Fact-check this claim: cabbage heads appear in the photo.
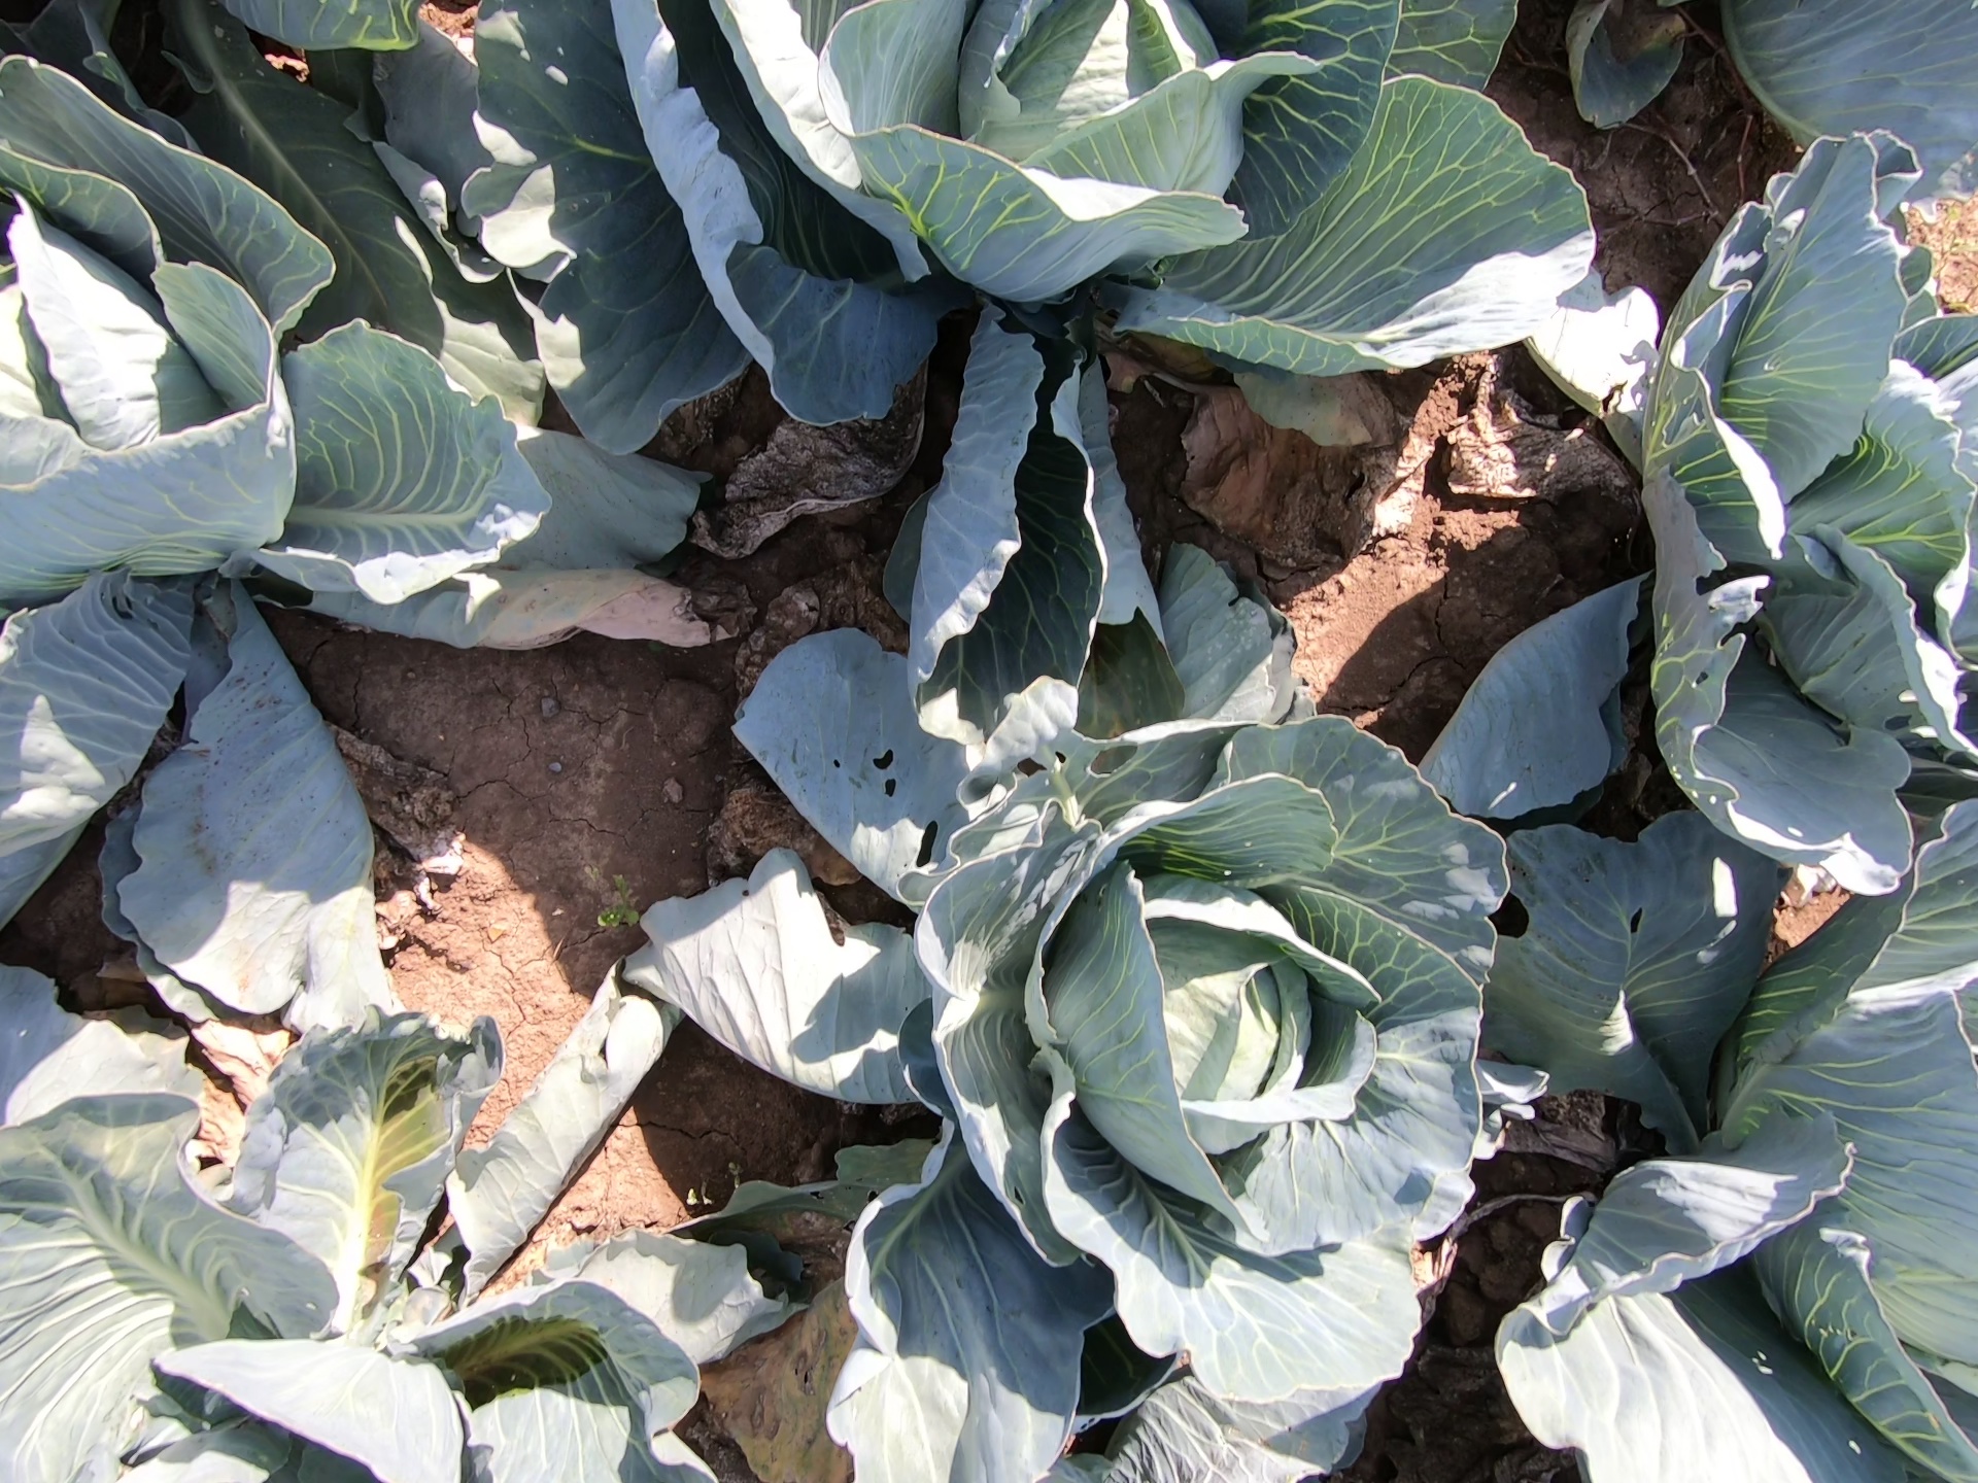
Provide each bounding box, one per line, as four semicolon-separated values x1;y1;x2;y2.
967;2;1231;231
1086;894;1312;1144
0;250;213;541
